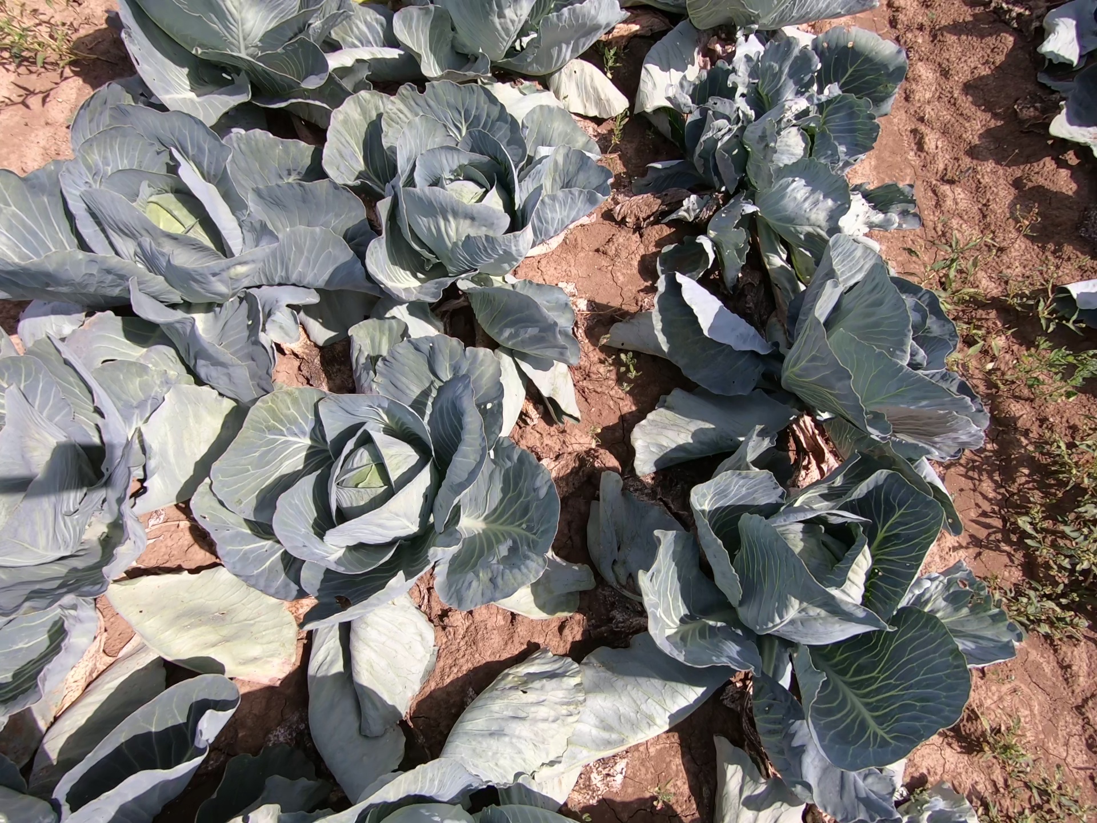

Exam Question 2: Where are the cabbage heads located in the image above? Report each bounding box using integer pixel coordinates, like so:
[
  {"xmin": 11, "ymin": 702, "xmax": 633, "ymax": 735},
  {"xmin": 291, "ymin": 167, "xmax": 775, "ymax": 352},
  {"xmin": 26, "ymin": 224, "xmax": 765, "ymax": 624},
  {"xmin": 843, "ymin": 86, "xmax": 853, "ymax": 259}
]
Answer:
[
  {"xmin": 446, "ymin": 0, "xmax": 541, "ymax": 56},
  {"xmin": 1, "ymin": 422, "xmax": 91, "ymax": 569},
  {"xmin": 381, "ymin": 804, "xmax": 477, "ymax": 822},
  {"xmin": 751, "ymin": 99, "xmax": 812, "ymax": 181},
  {"xmin": 134, "ymin": 193, "xmax": 228, "ymax": 277},
  {"xmin": 759, "ymin": 520, "xmax": 860, "ymax": 630},
  {"xmin": 436, "ymin": 179, "xmax": 502, "ymax": 243},
  {"xmin": 337, "ymin": 440, "xmax": 424, "ymax": 530}
]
